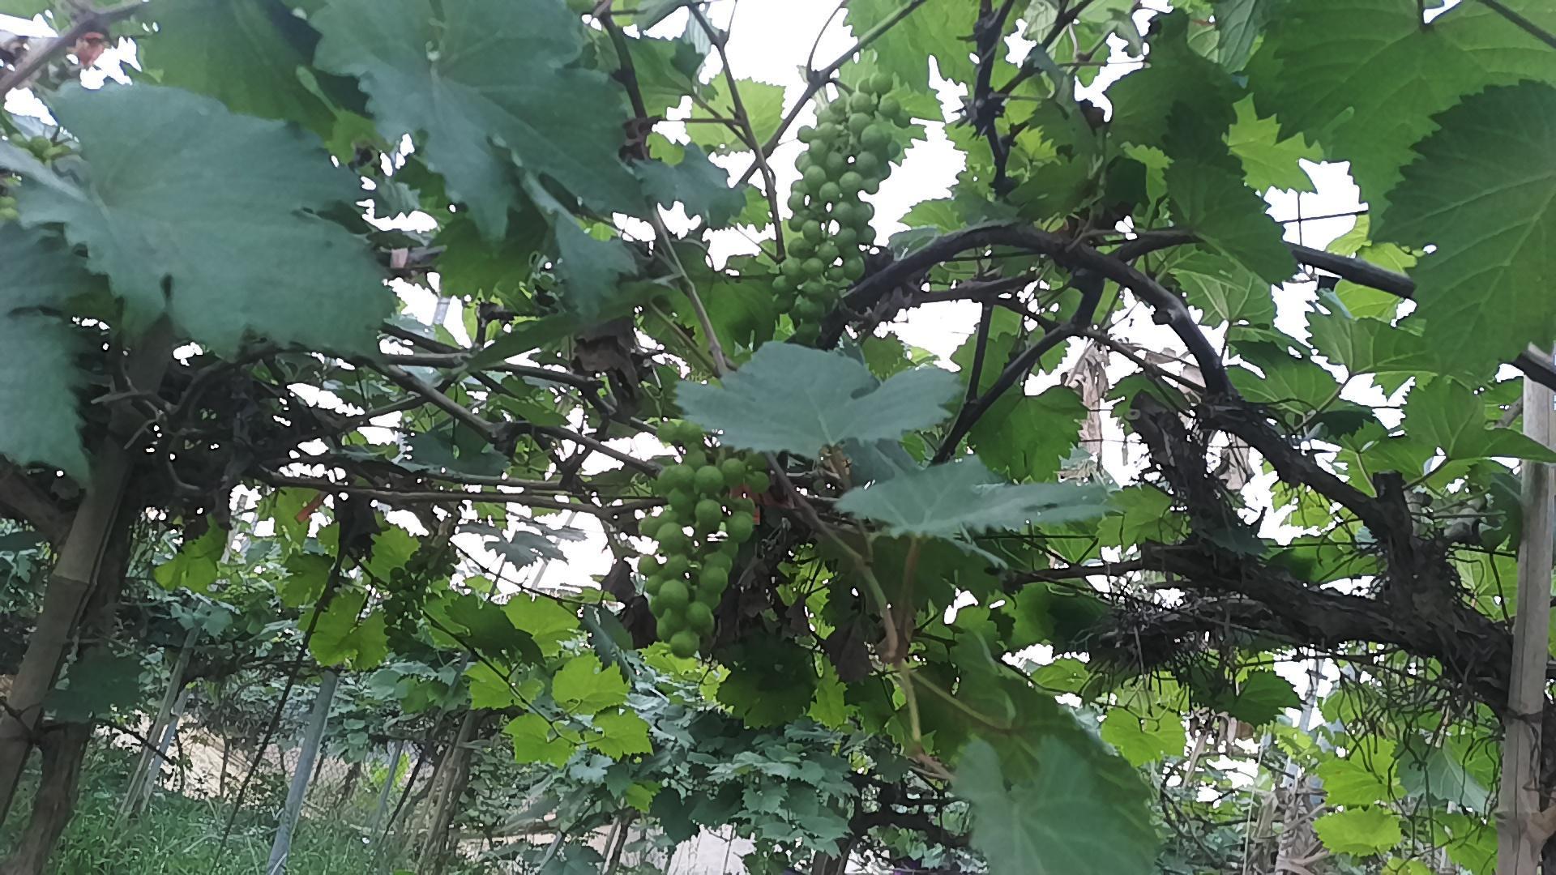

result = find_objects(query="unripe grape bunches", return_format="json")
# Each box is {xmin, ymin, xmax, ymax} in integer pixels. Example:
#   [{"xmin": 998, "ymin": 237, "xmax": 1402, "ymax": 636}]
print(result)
[
  {"xmin": 772, "ymin": 73, "xmax": 911, "ymax": 346},
  {"xmin": 639, "ymin": 422, "xmax": 774, "ymax": 658}
]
